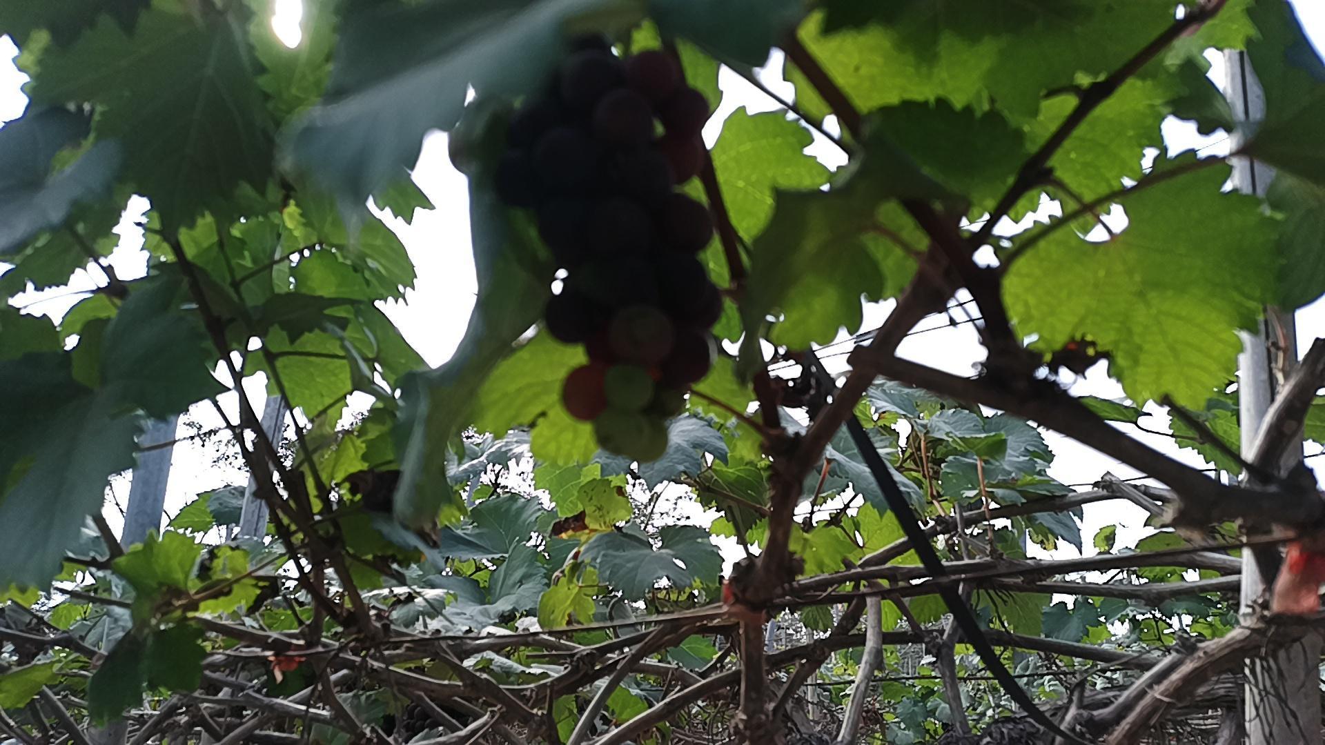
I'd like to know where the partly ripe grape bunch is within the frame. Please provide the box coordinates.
[495,36,724,461]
